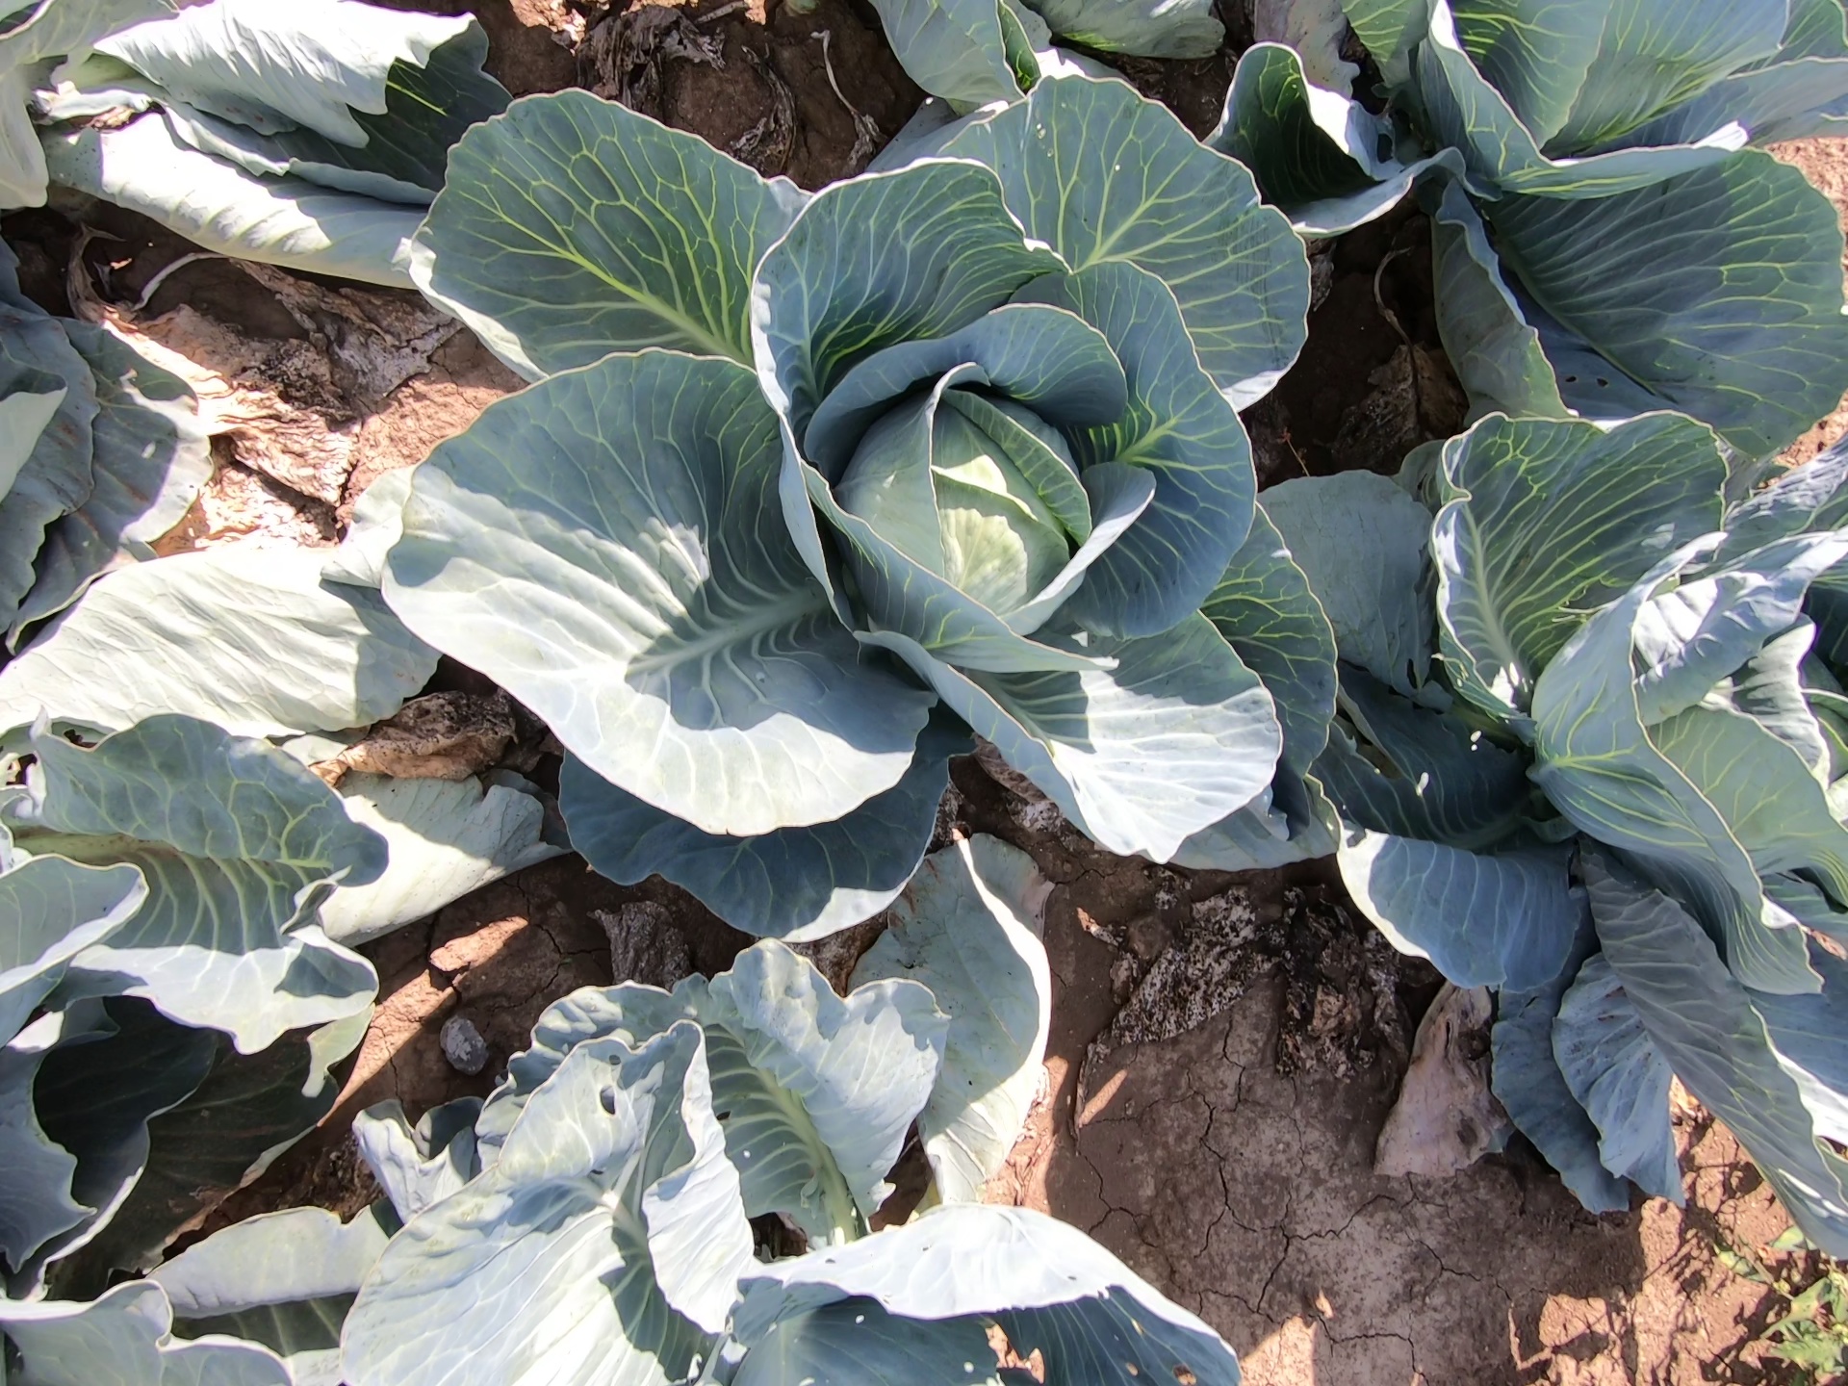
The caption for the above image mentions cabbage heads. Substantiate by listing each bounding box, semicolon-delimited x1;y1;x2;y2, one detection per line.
850;382;1087;641
1607;622;1844;830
